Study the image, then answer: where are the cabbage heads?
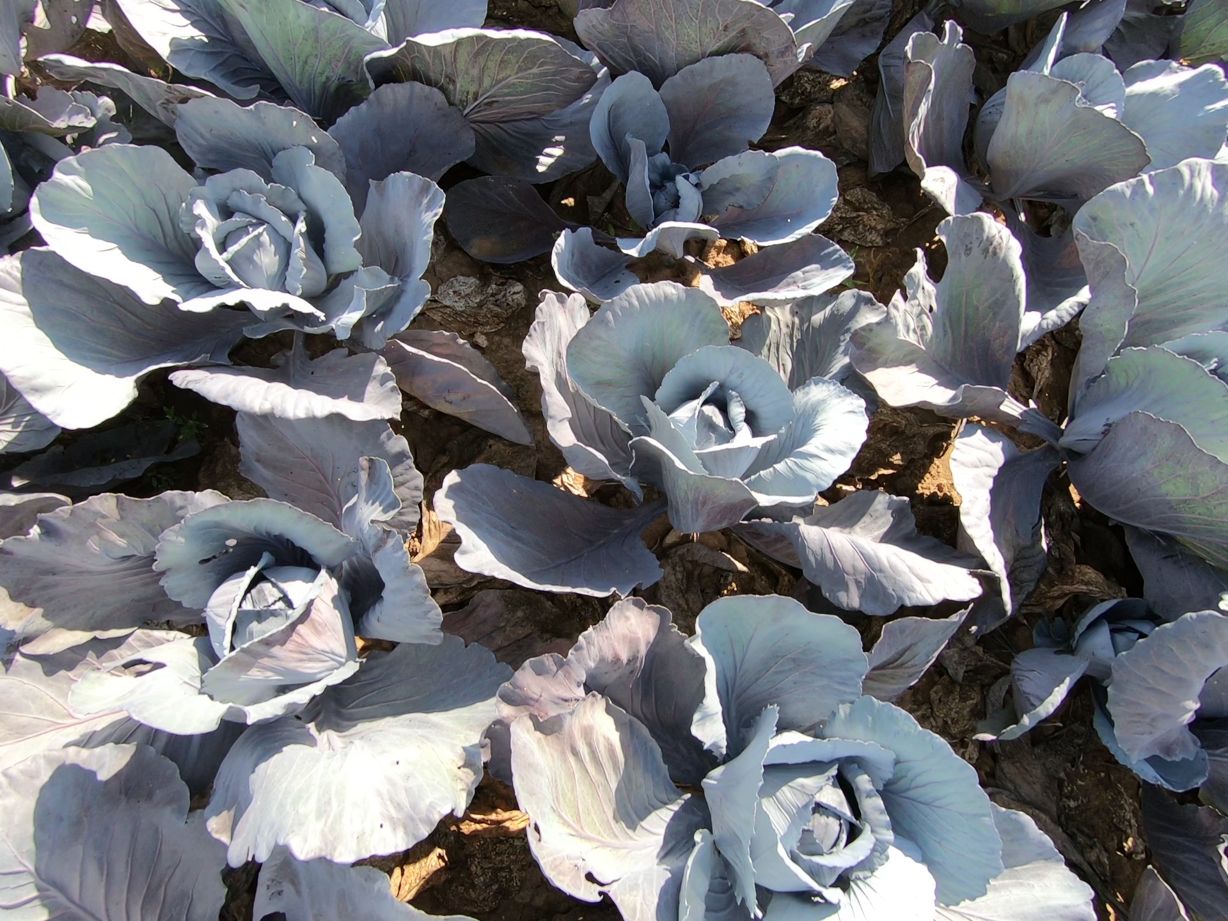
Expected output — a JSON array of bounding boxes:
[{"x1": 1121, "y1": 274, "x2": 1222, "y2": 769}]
[
  {"x1": 644, "y1": 178, "x2": 700, "y2": 231},
  {"x1": 214, "y1": 215, "x2": 295, "y2": 297},
  {"x1": 737, "y1": 767, "x2": 859, "y2": 883},
  {"x1": 677, "y1": 402, "x2": 736, "y2": 478},
  {"x1": 219, "y1": 567, "x2": 352, "y2": 672}
]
